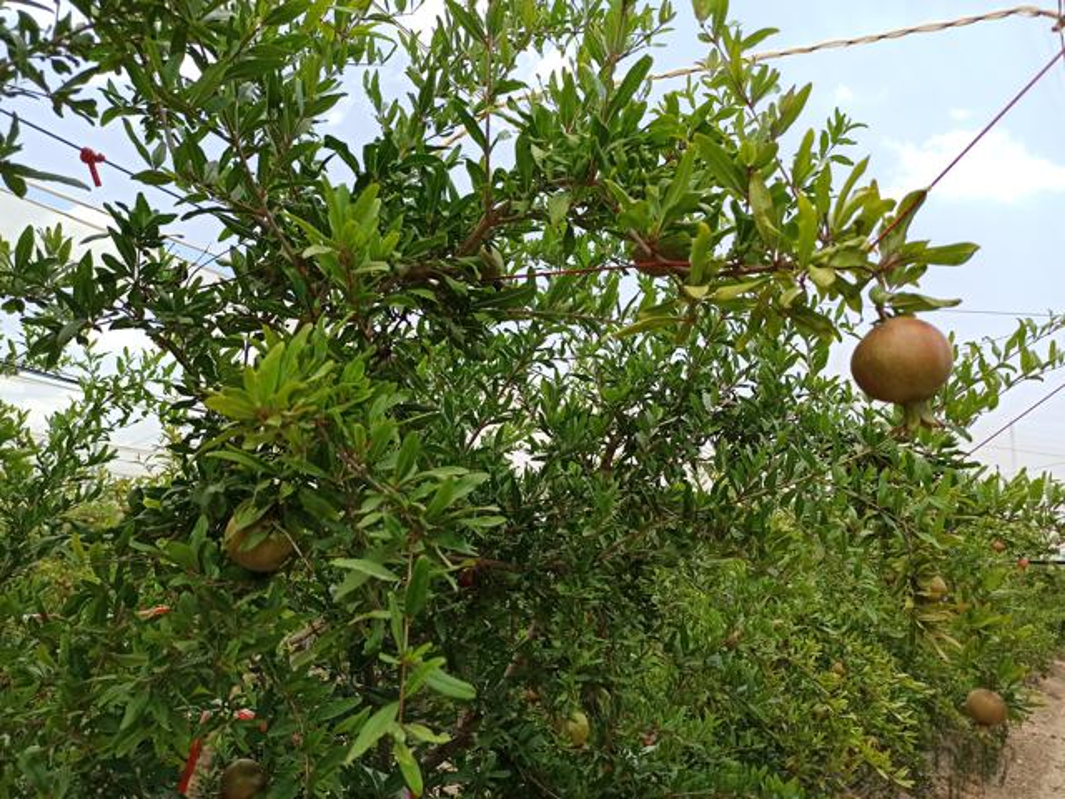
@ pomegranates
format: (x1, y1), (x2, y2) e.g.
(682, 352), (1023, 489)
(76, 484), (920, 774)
(963, 687), (1008, 741)
(478, 243), (506, 293)
(929, 574), (949, 593)
(221, 757), (265, 799)
(223, 514), (295, 573)
(849, 315), (954, 434)
(566, 712), (589, 747)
